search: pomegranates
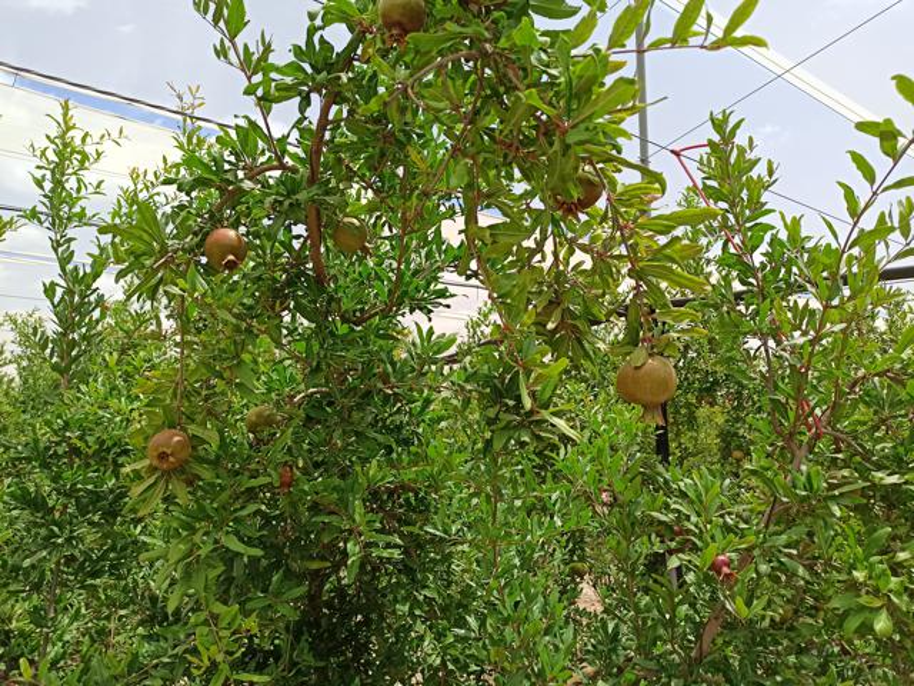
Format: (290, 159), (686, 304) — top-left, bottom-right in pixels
(616, 353), (677, 427)
(377, 0), (427, 47)
(334, 216), (374, 257)
(710, 556), (735, 582)
(554, 180), (603, 220)
(244, 404), (277, 433)
(147, 427), (193, 472)
(203, 227), (248, 272)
